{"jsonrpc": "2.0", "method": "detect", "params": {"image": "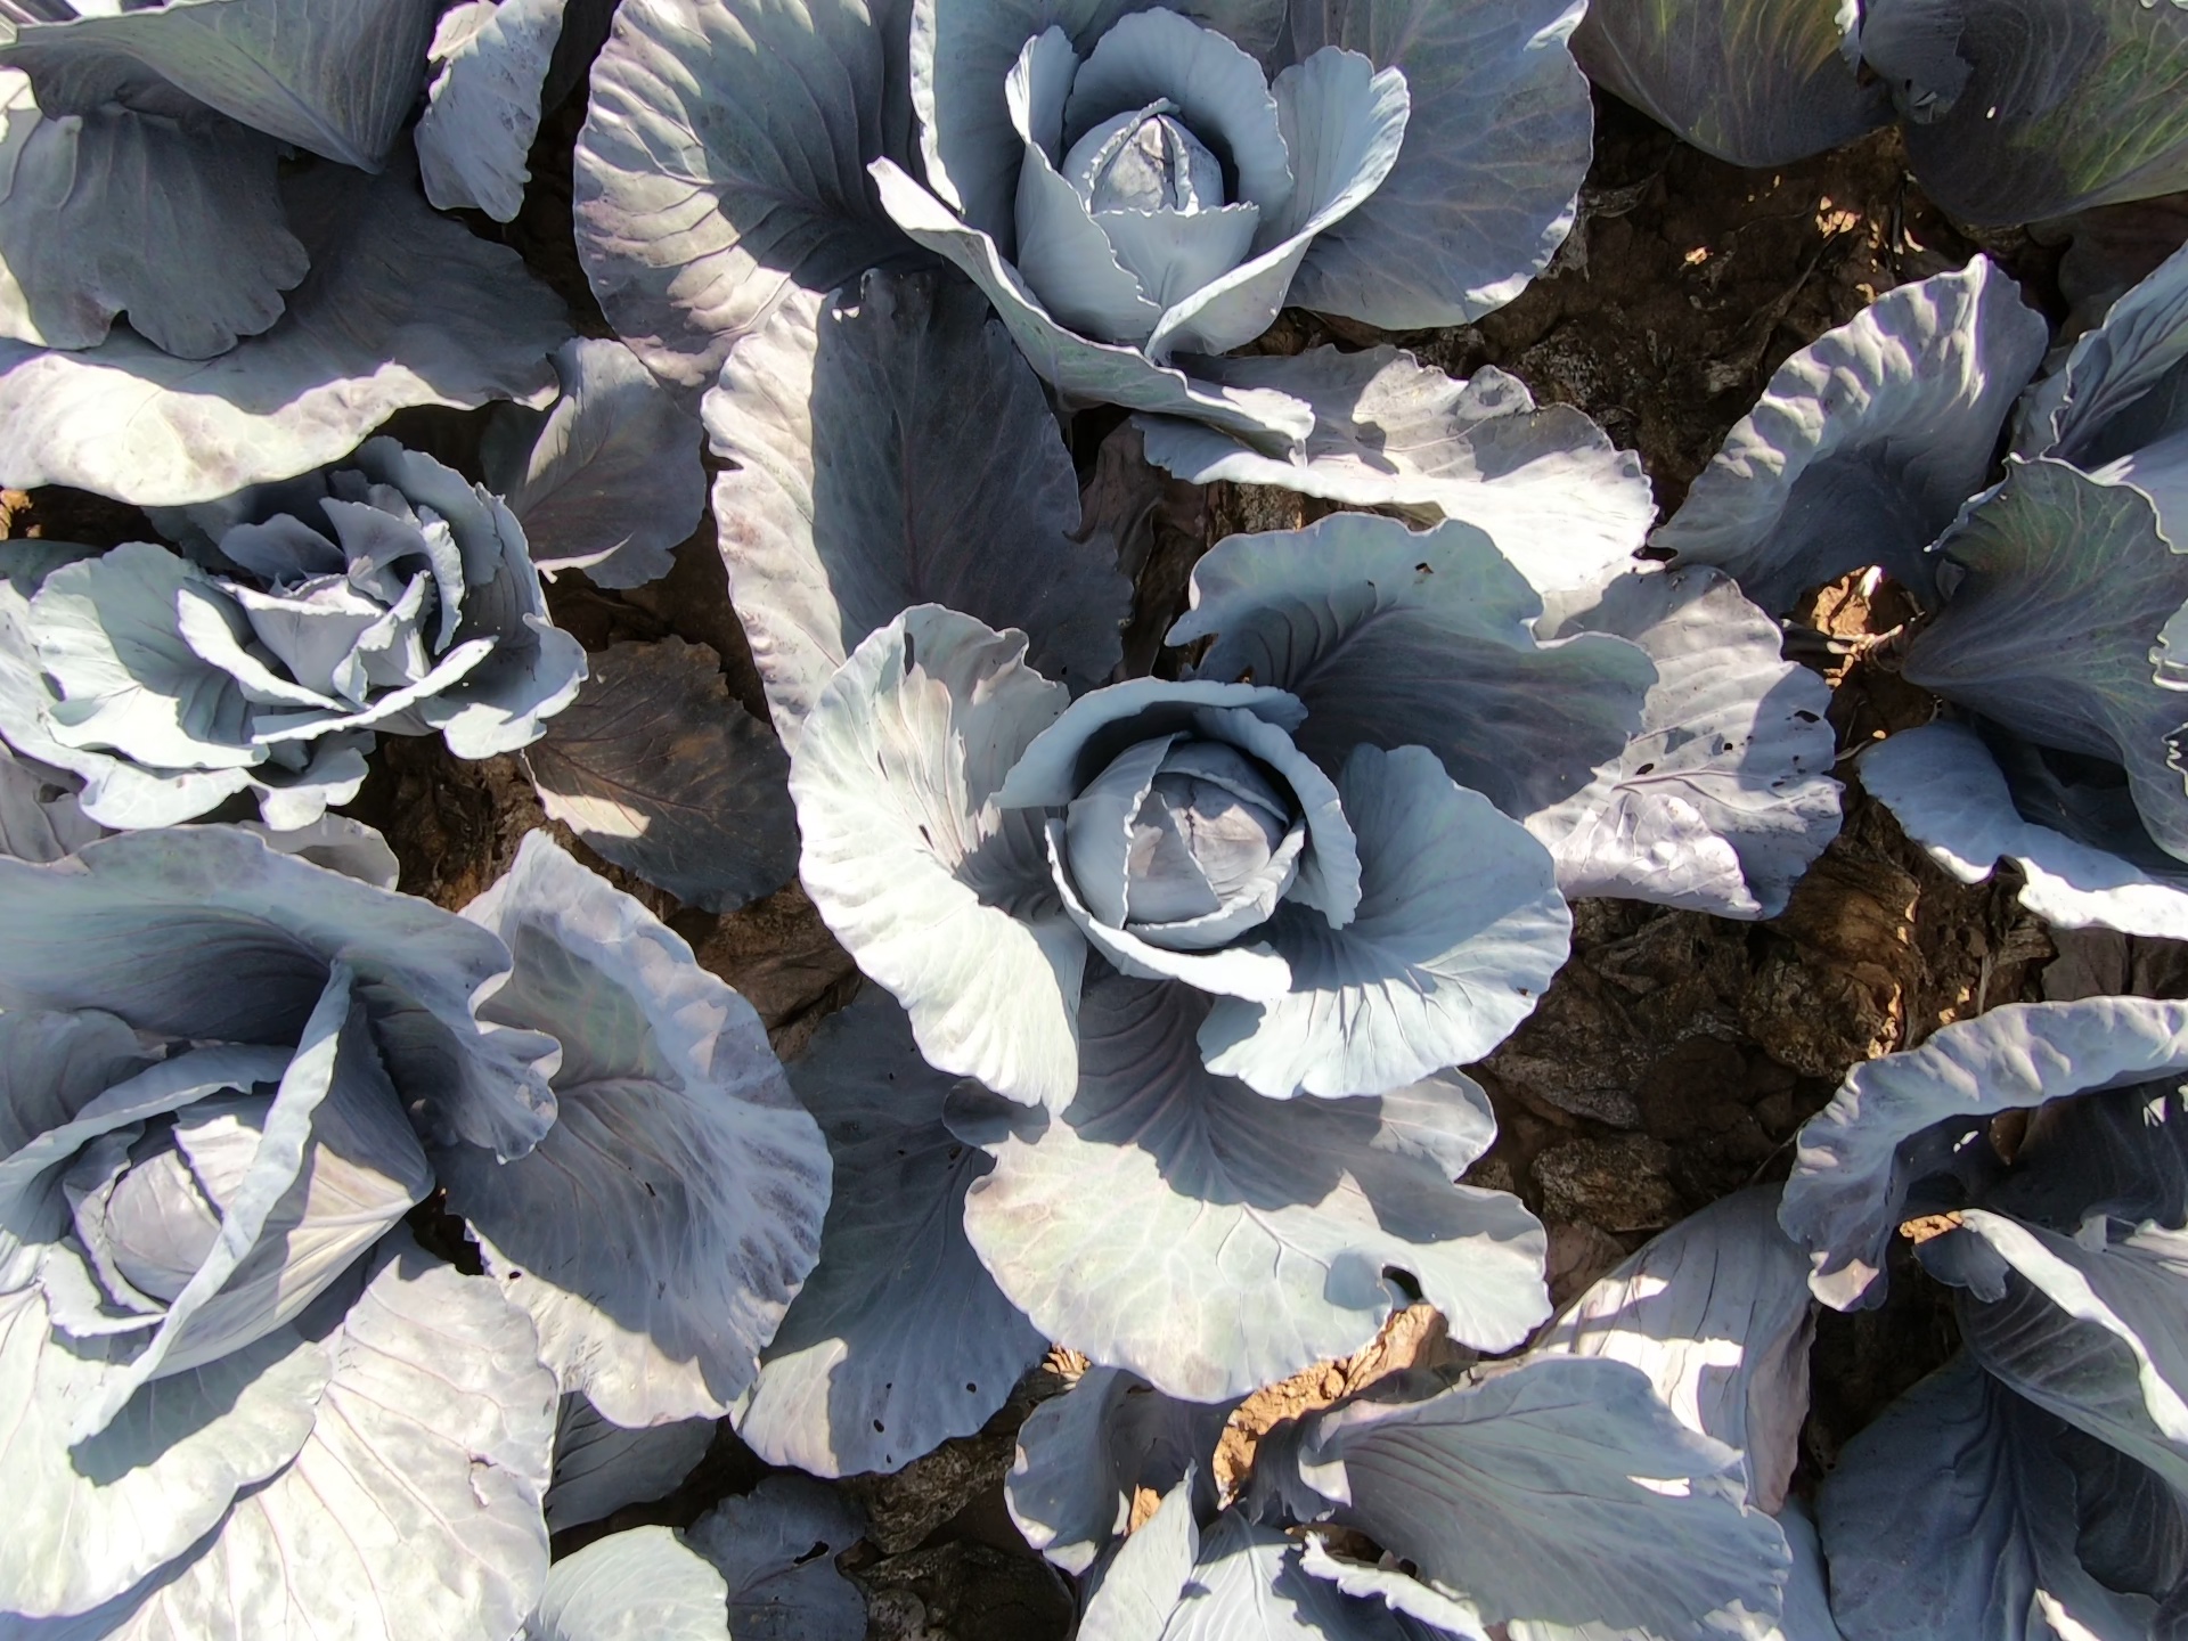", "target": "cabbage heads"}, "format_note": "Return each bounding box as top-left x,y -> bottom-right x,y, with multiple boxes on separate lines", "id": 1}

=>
1072,741 -> 1296,936
1999,439 -> 2185,705
1061,109 -> 1223,292
76,1087 -> 340,1307
261,566 -> 397,676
